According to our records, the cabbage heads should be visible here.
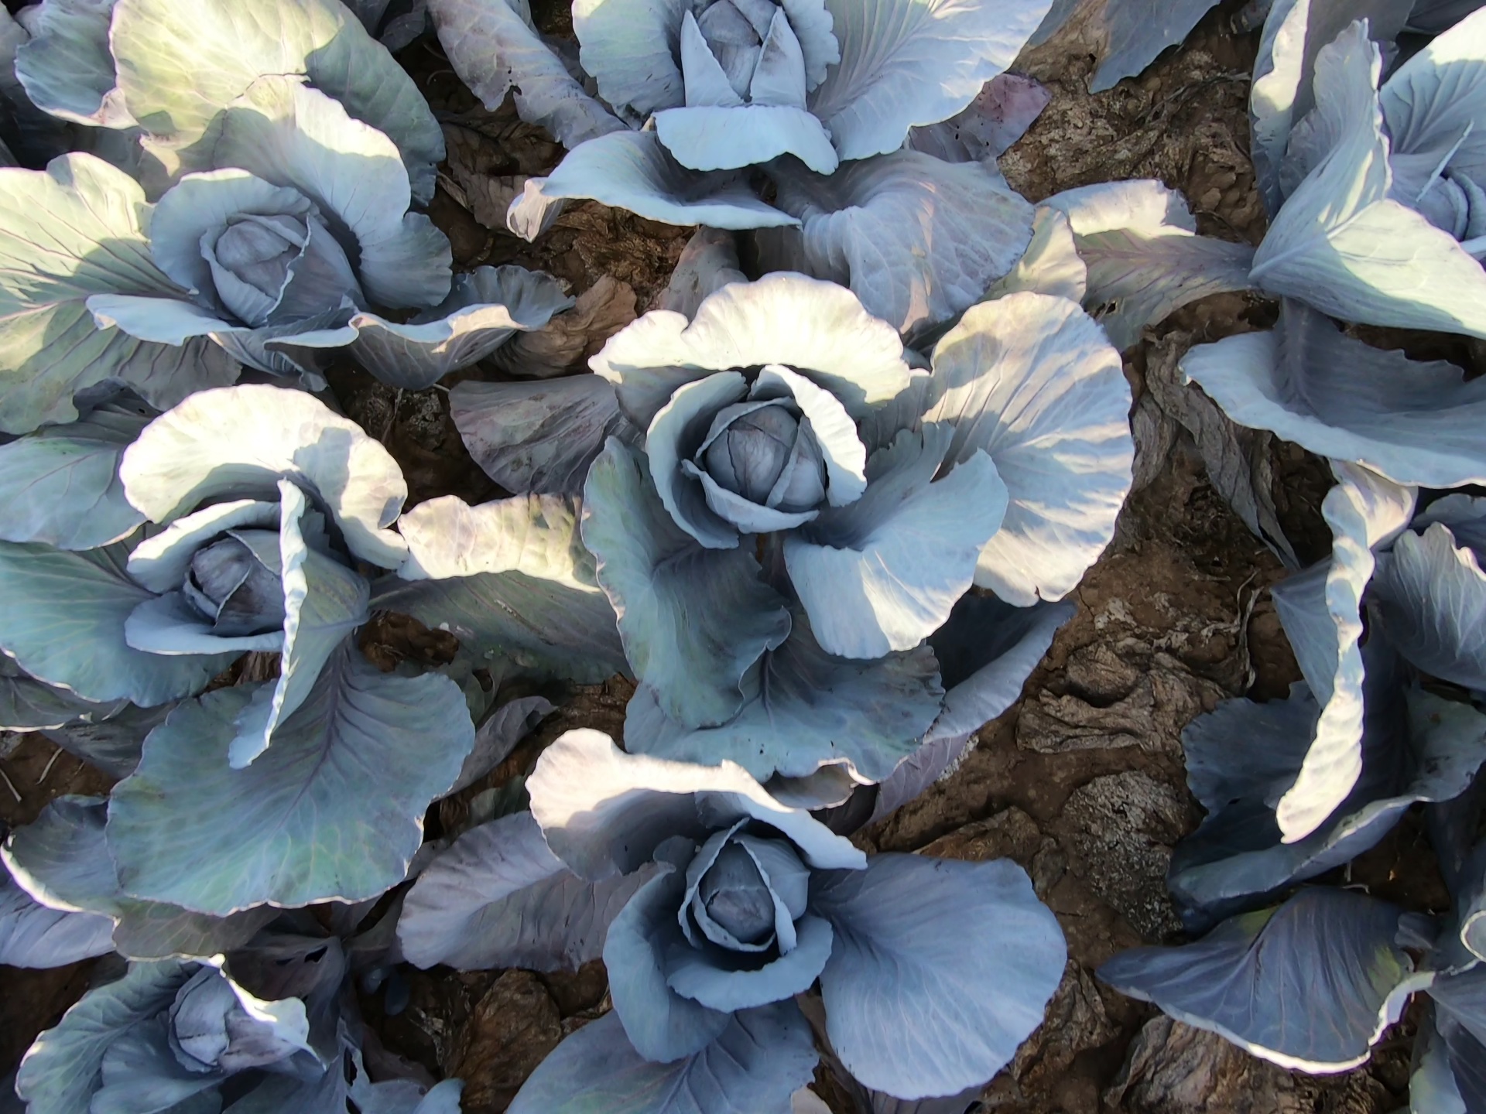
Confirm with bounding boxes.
[187,532,301,623]
[699,844,802,937]
[1338,155,1465,252]
[214,215,325,323]
[687,0,796,108]
[175,965,303,1068]
[709,402,824,510]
